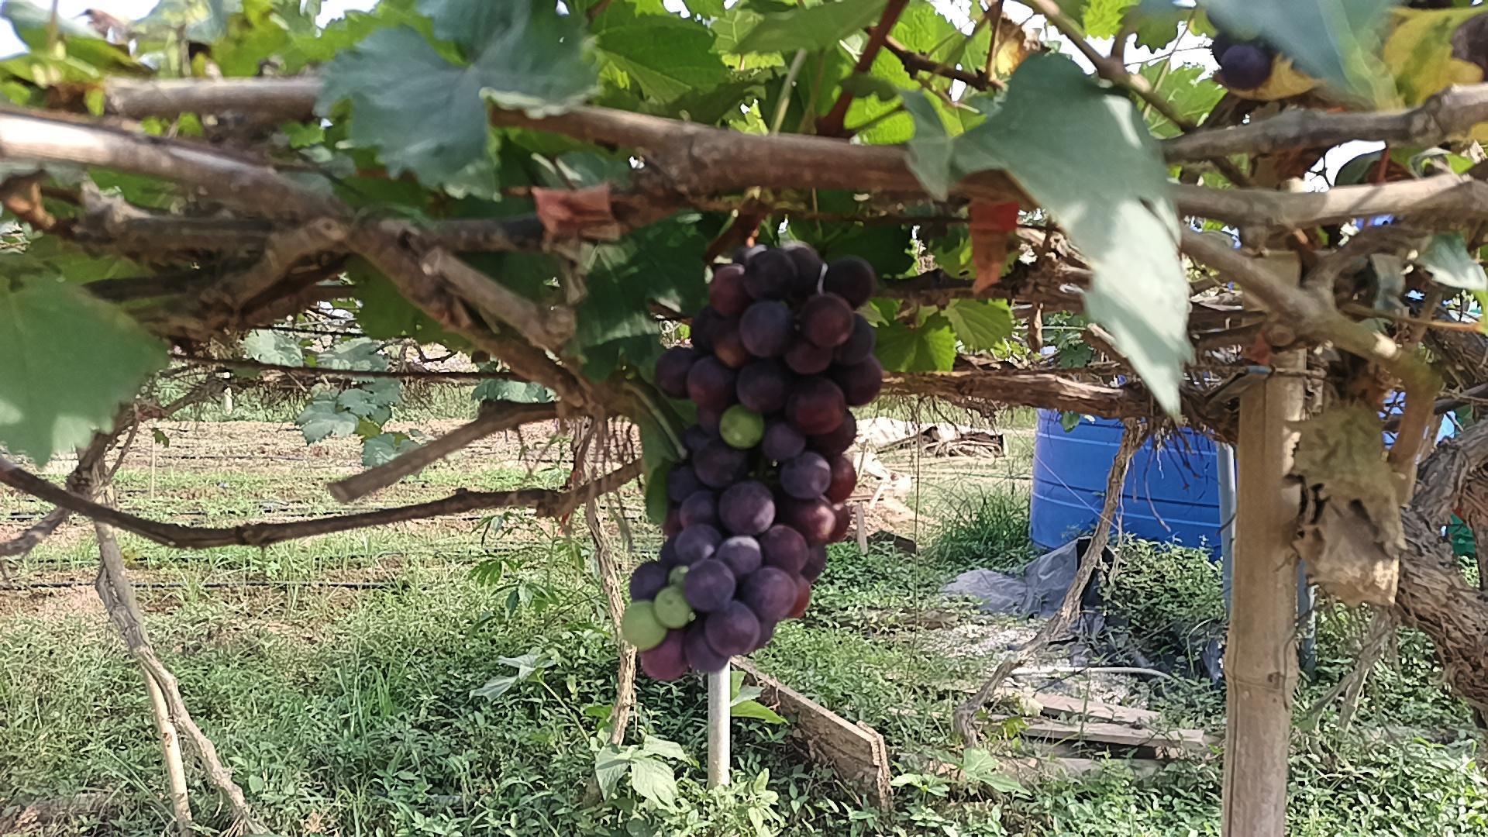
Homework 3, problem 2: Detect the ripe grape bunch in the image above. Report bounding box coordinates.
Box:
[1211,35,1274,91]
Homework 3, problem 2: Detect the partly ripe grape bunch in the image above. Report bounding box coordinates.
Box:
[621,243,882,679]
